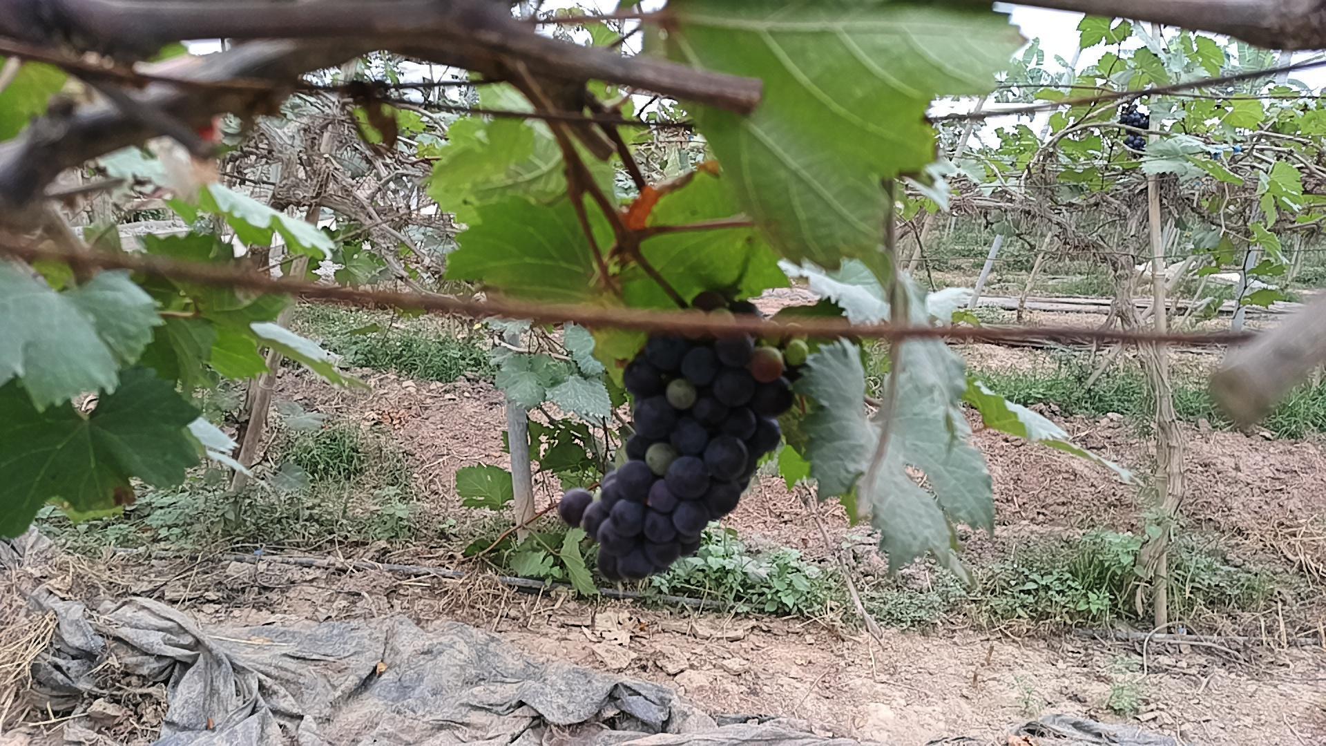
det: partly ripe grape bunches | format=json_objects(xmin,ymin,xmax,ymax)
[
  {"xmin": 559, "ymin": 290, "xmax": 805, "ymax": 580},
  {"xmin": 1117, "ymin": 97, "xmax": 1150, "ymax": 160}
]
